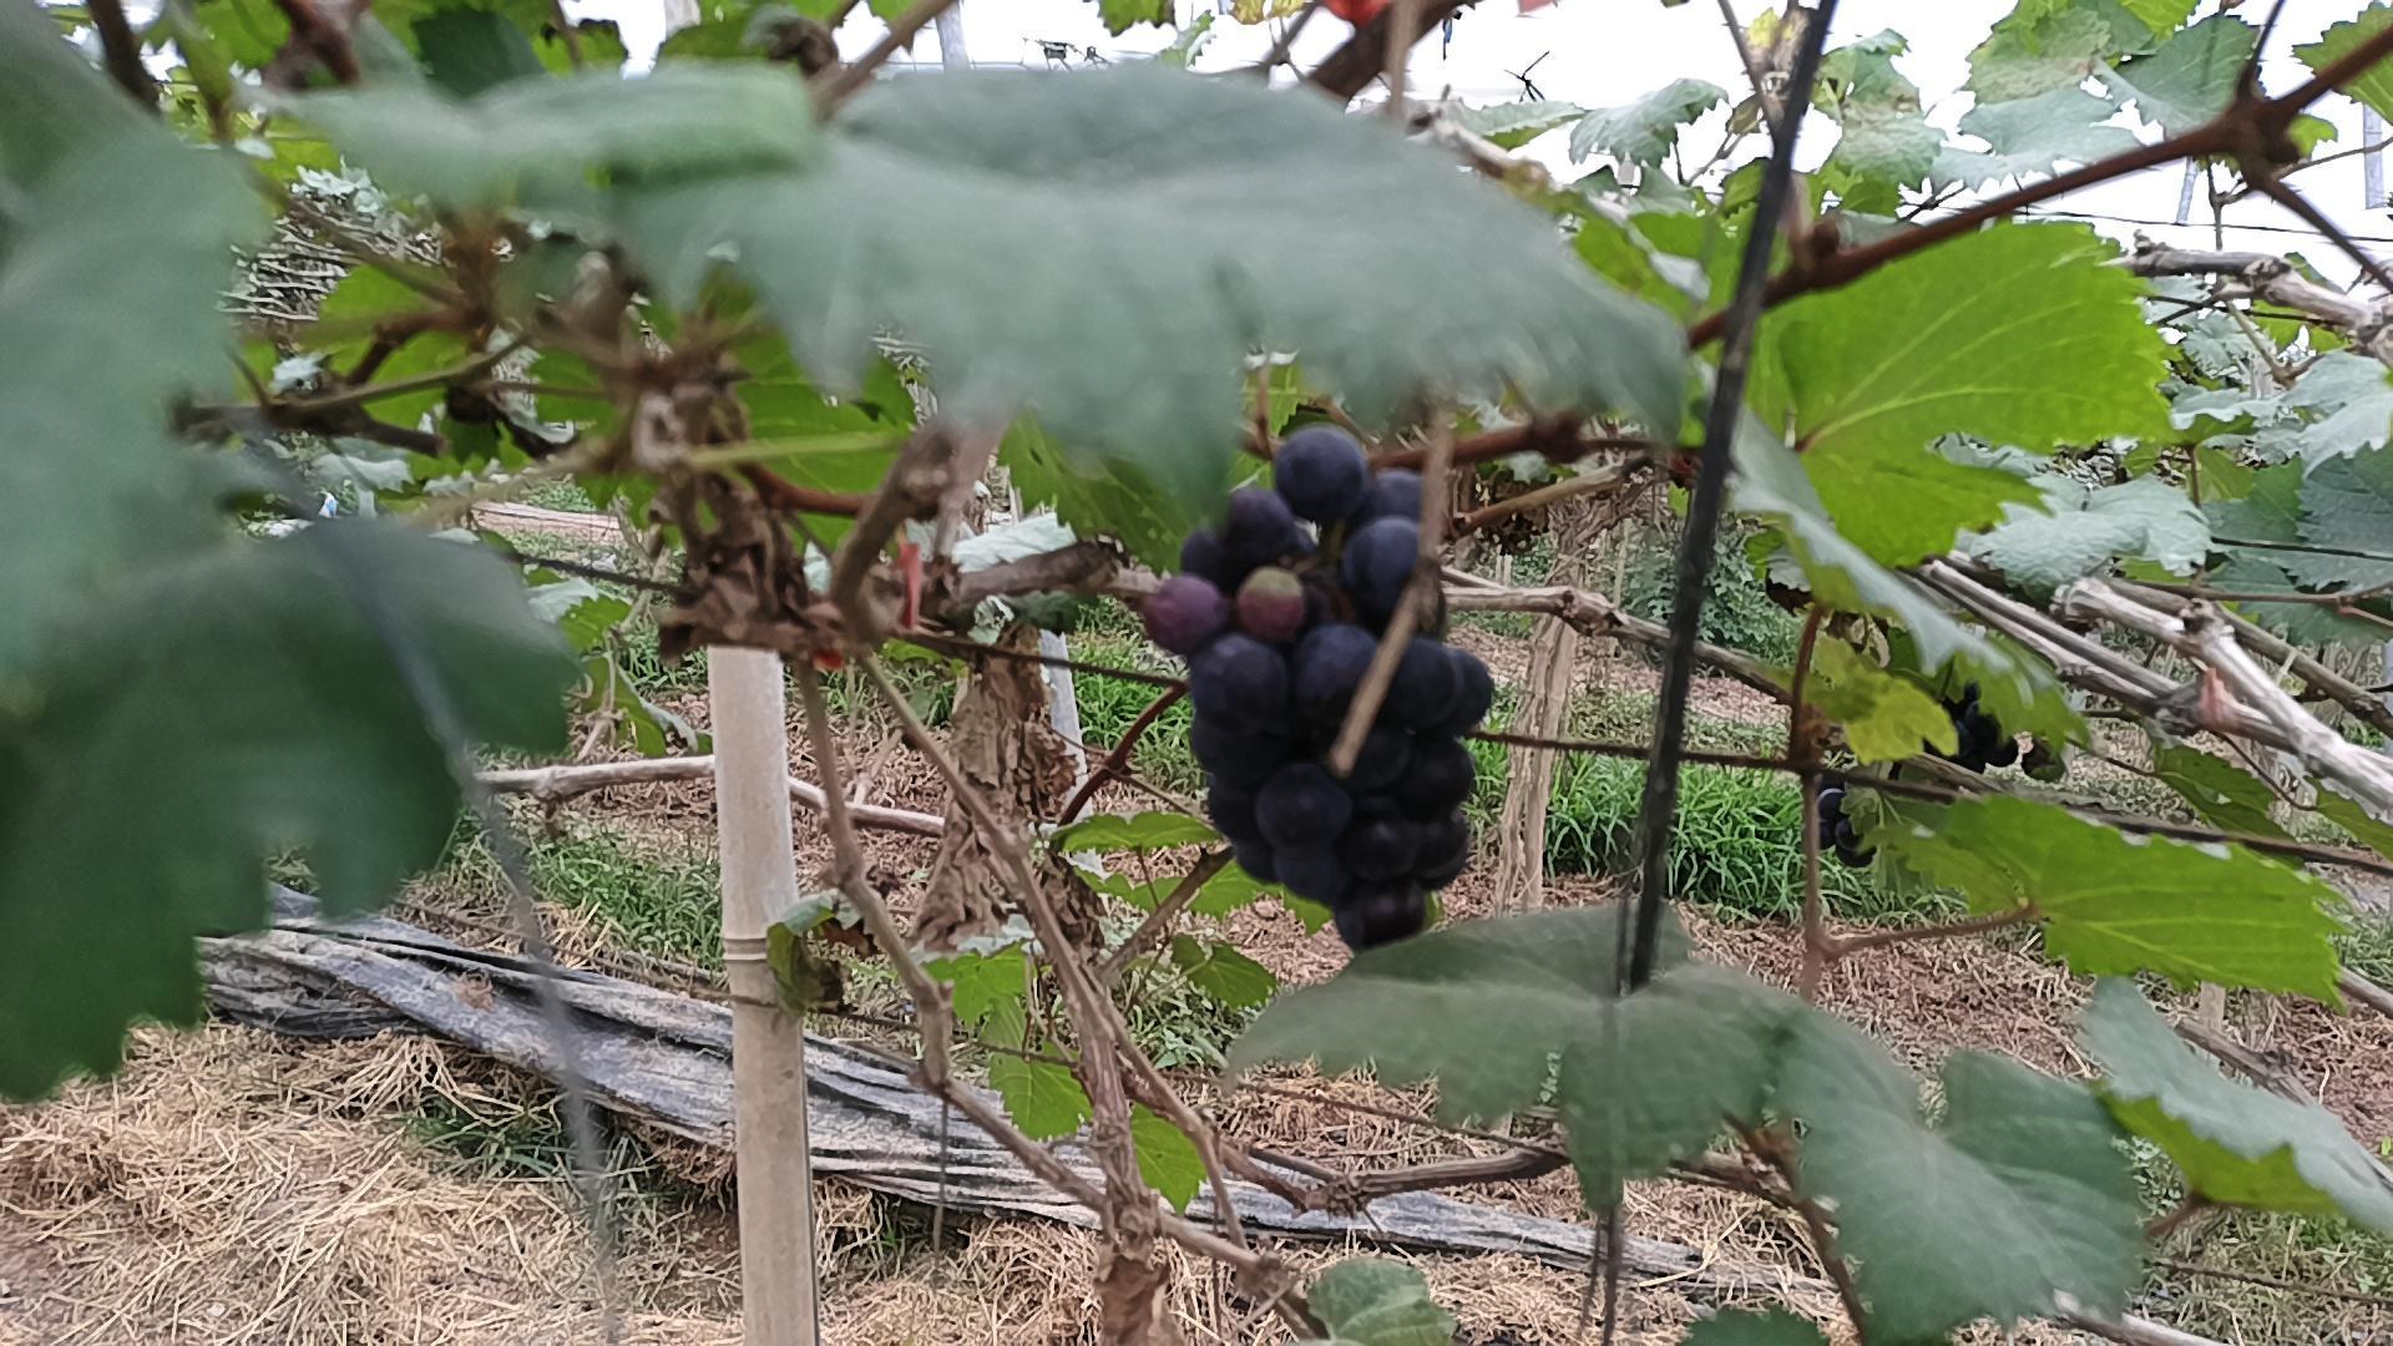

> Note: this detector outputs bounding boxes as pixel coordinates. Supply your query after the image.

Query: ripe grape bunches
[1815,682,2061,867]
[1142,425,1492,948]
